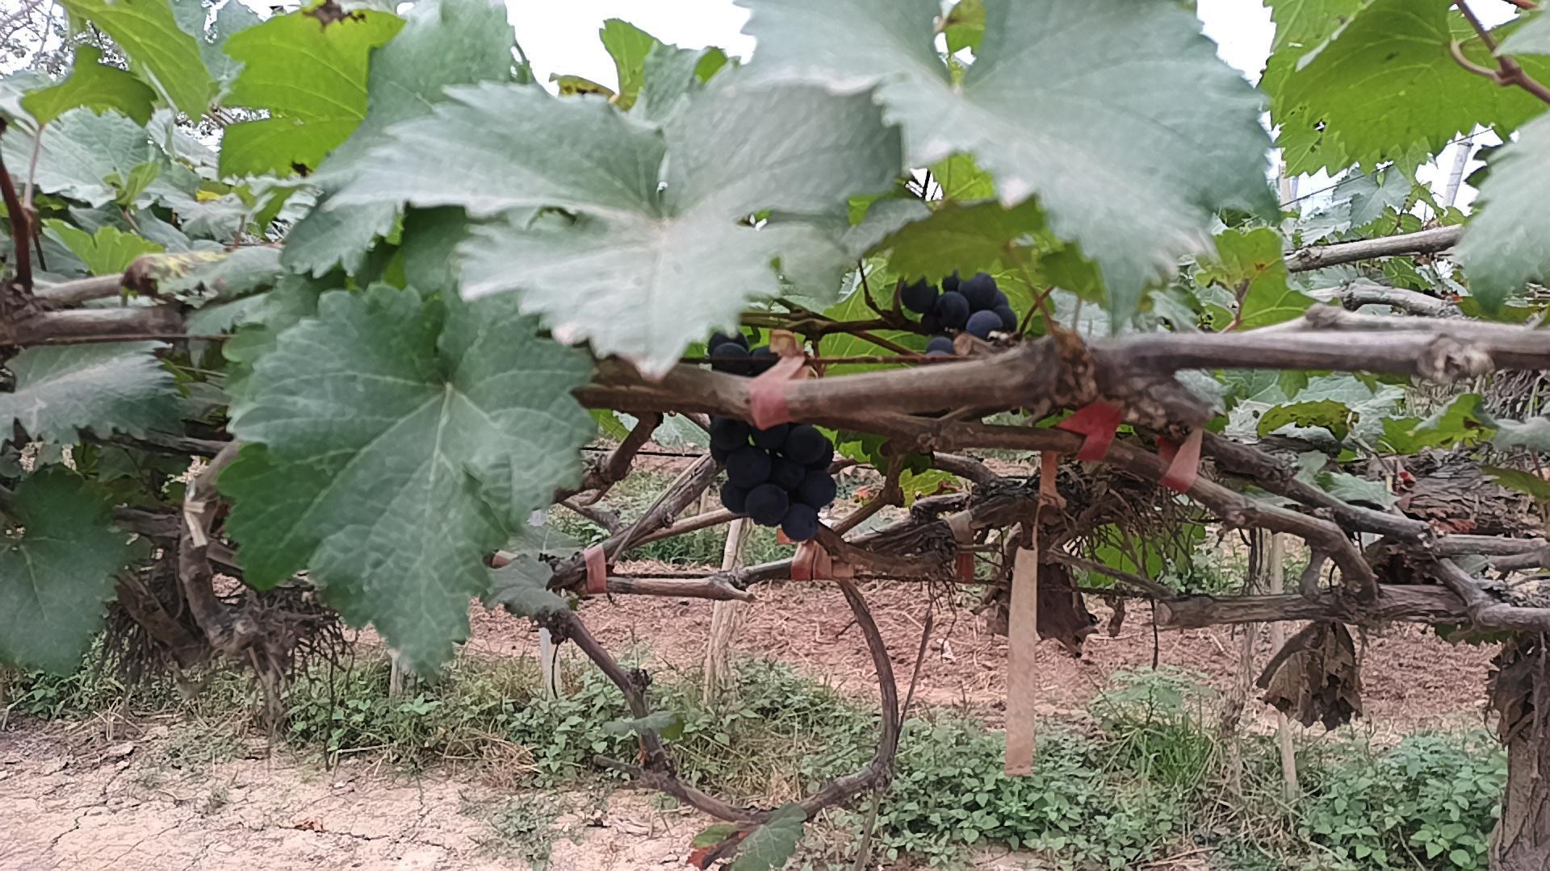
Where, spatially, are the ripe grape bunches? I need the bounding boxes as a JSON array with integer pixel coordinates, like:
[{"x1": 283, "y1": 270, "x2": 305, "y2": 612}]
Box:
[
  {"x1": 707, "y1": 327, "x2": 836, "y2": 542},
  {"x1": 897, "y1": 272, "x2": 1016, "y2": 340}
]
